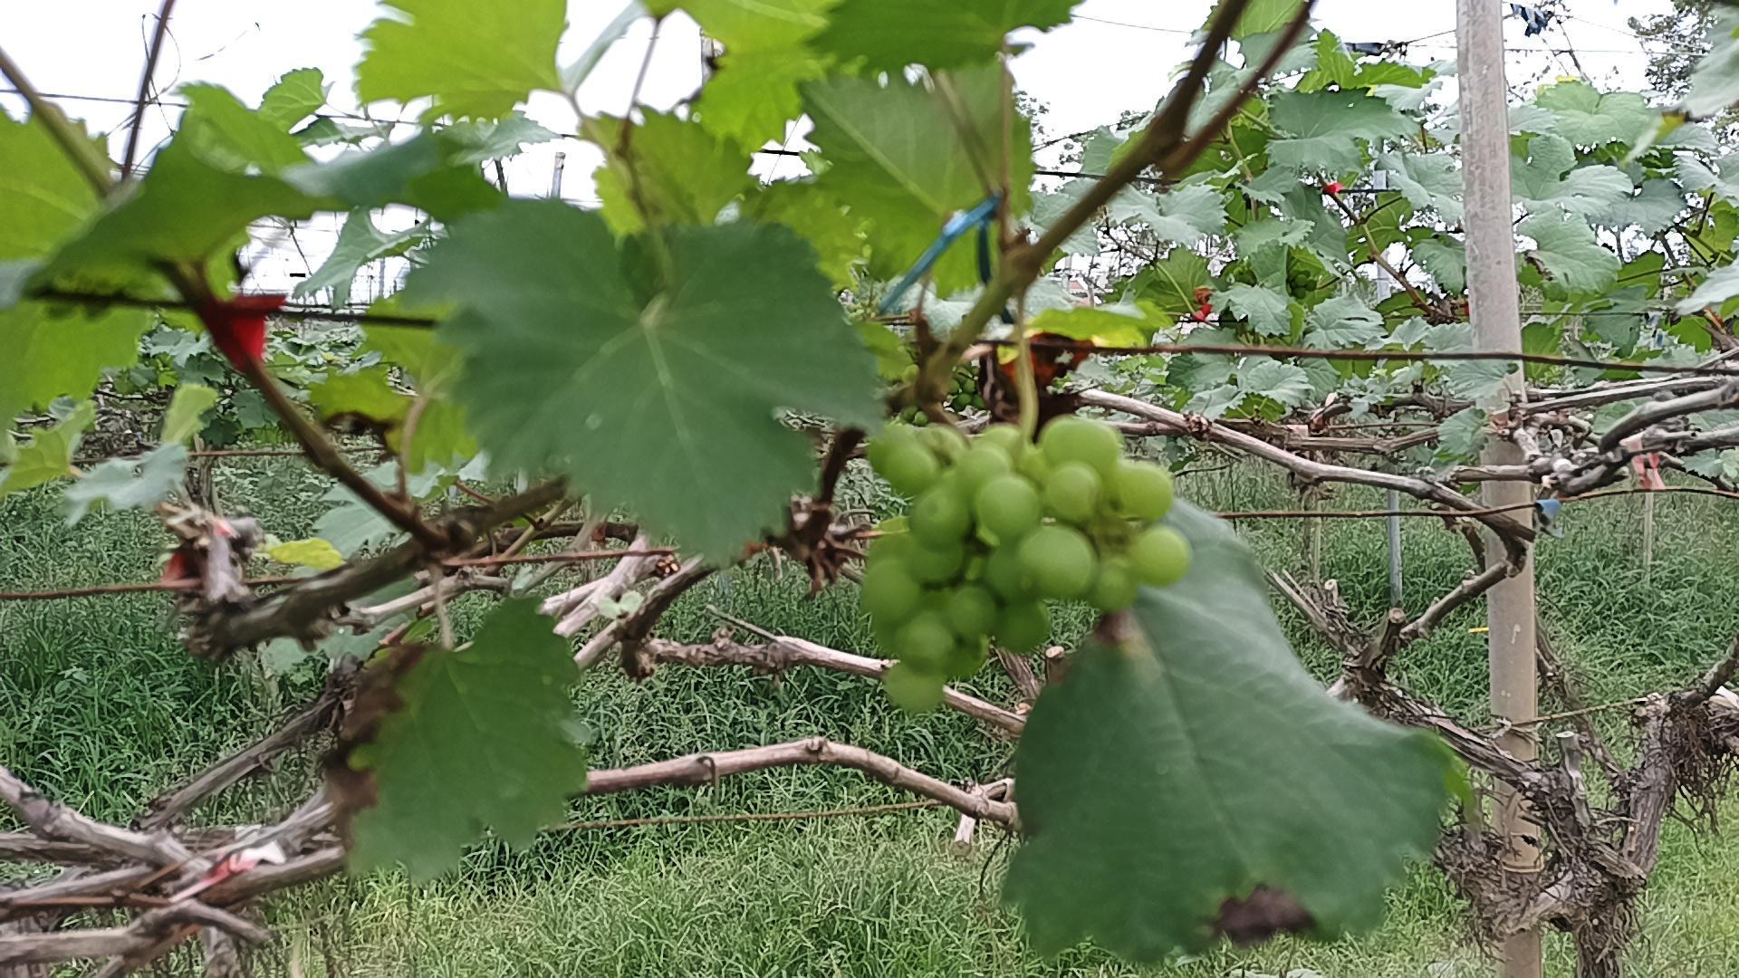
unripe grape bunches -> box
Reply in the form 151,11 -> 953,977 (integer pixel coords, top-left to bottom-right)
1236,245 -> 1329,303
860,417 -> 1190,710
886,353 -> 1014,433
